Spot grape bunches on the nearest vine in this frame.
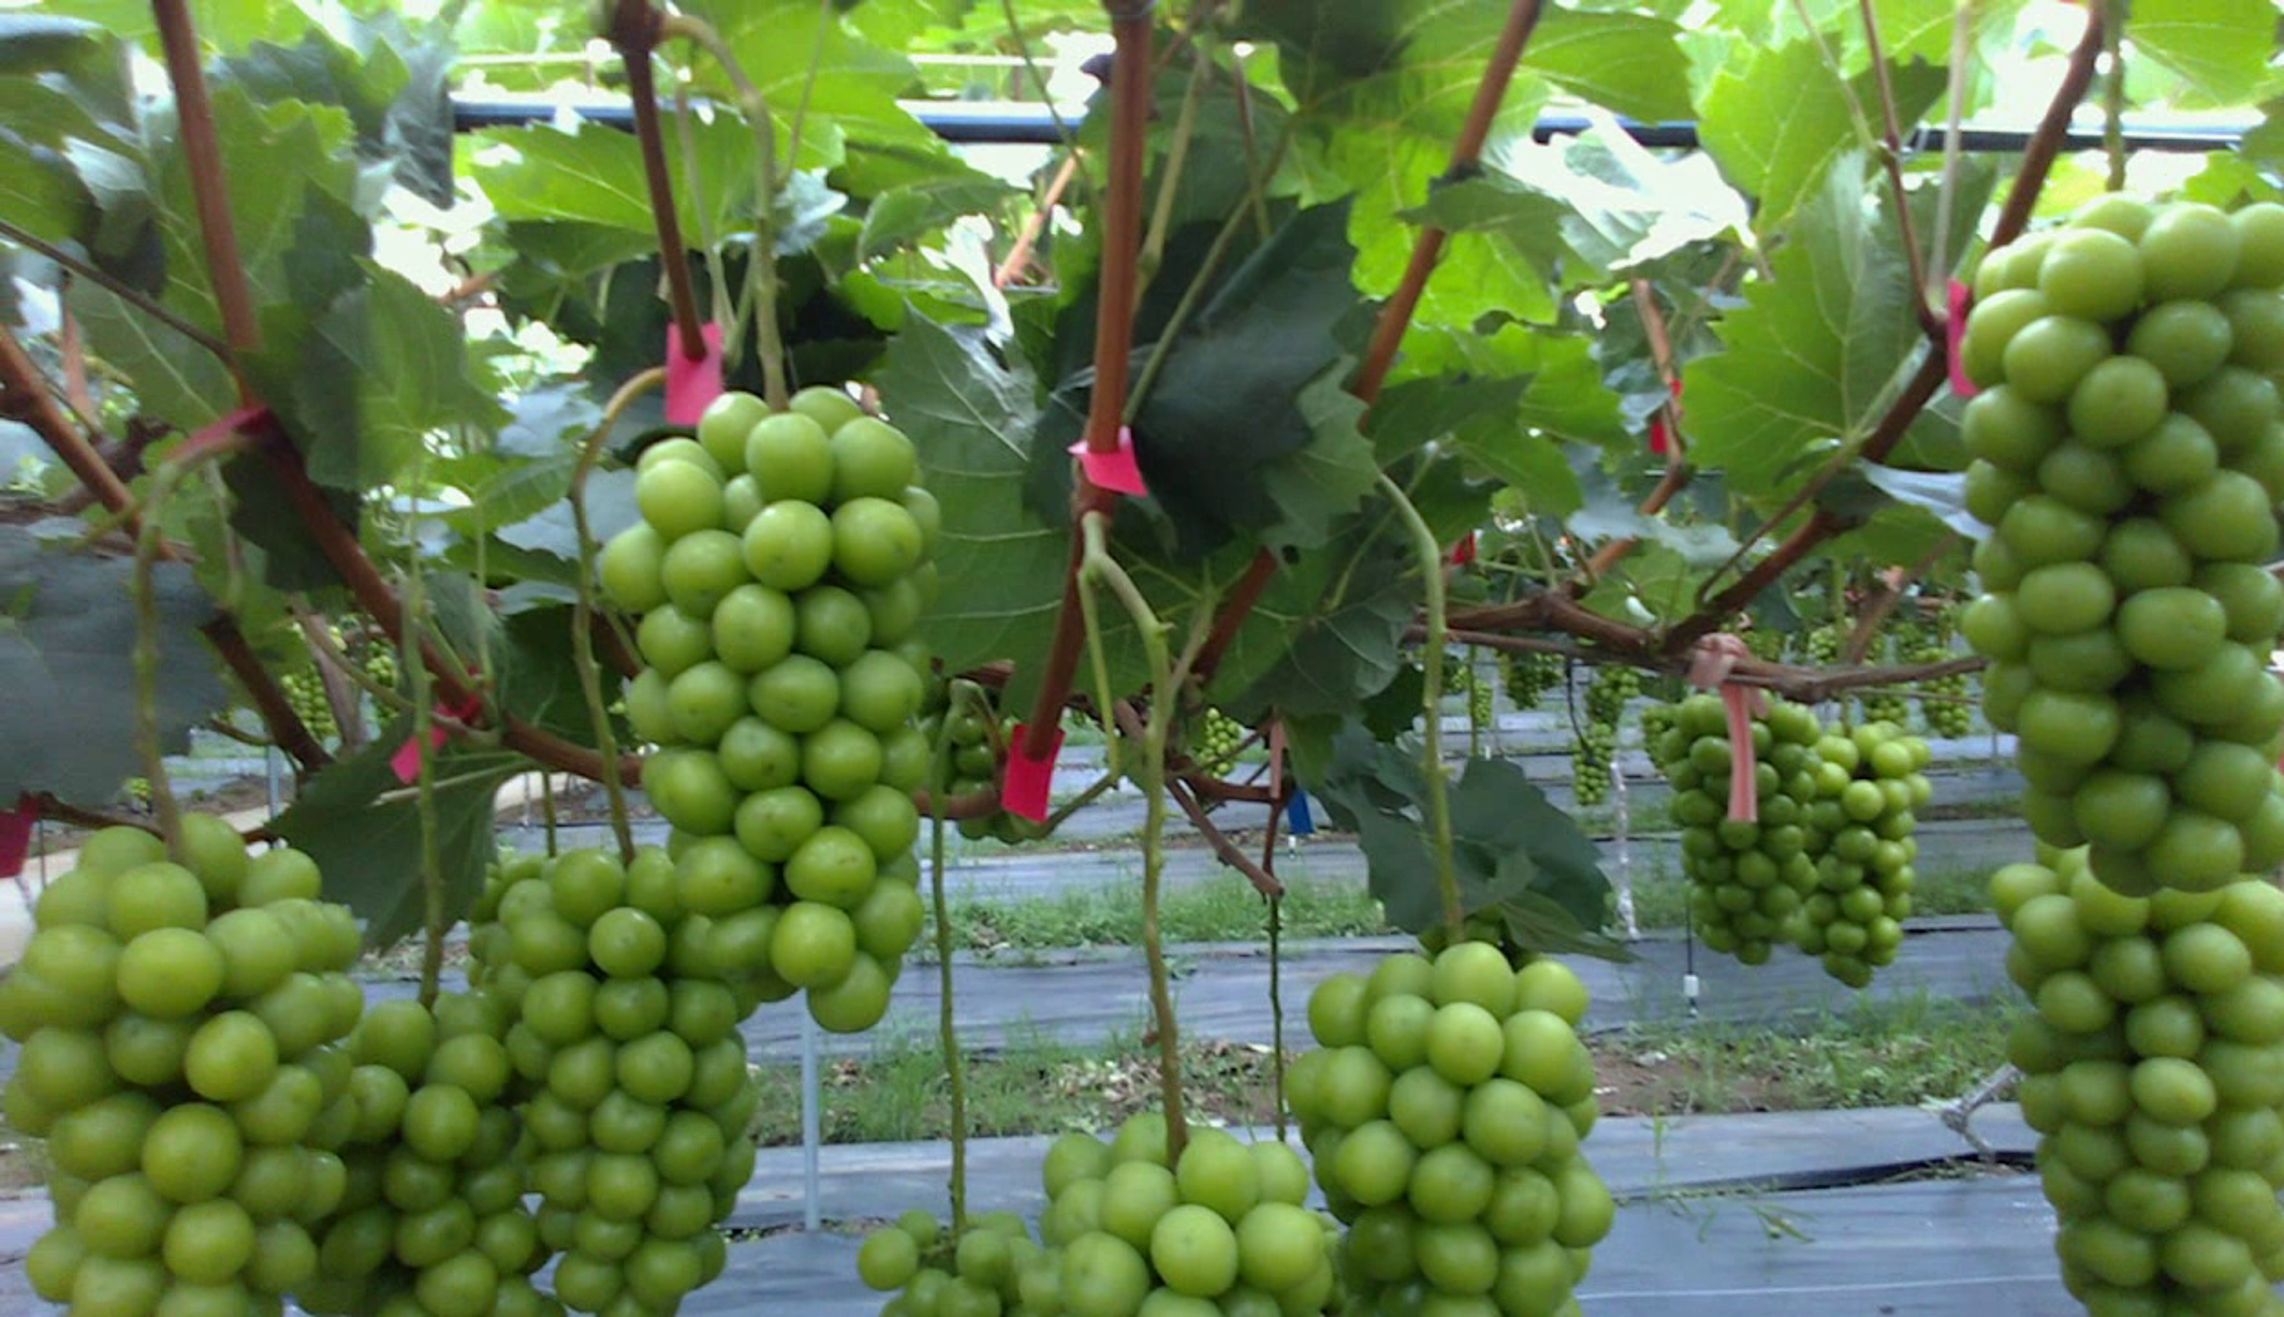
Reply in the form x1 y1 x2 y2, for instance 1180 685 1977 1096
856 1209 1061 1315
295 982 553 1315
0 810 362 1315
483 843 758 1315
1040 1110 1334 1315
1988 832 2282 1315
1285 940 1614 1315
1958 188 2282 902
600 386 943 1032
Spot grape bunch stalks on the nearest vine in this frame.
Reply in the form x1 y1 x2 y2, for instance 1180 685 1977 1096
2101 0 2128 188
1082 514 1190 1172
399 580 443 1012
657 15 789 413
1374 474 1464 948
564 366 663 867
130 434 253 867
932 680 1007 1277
